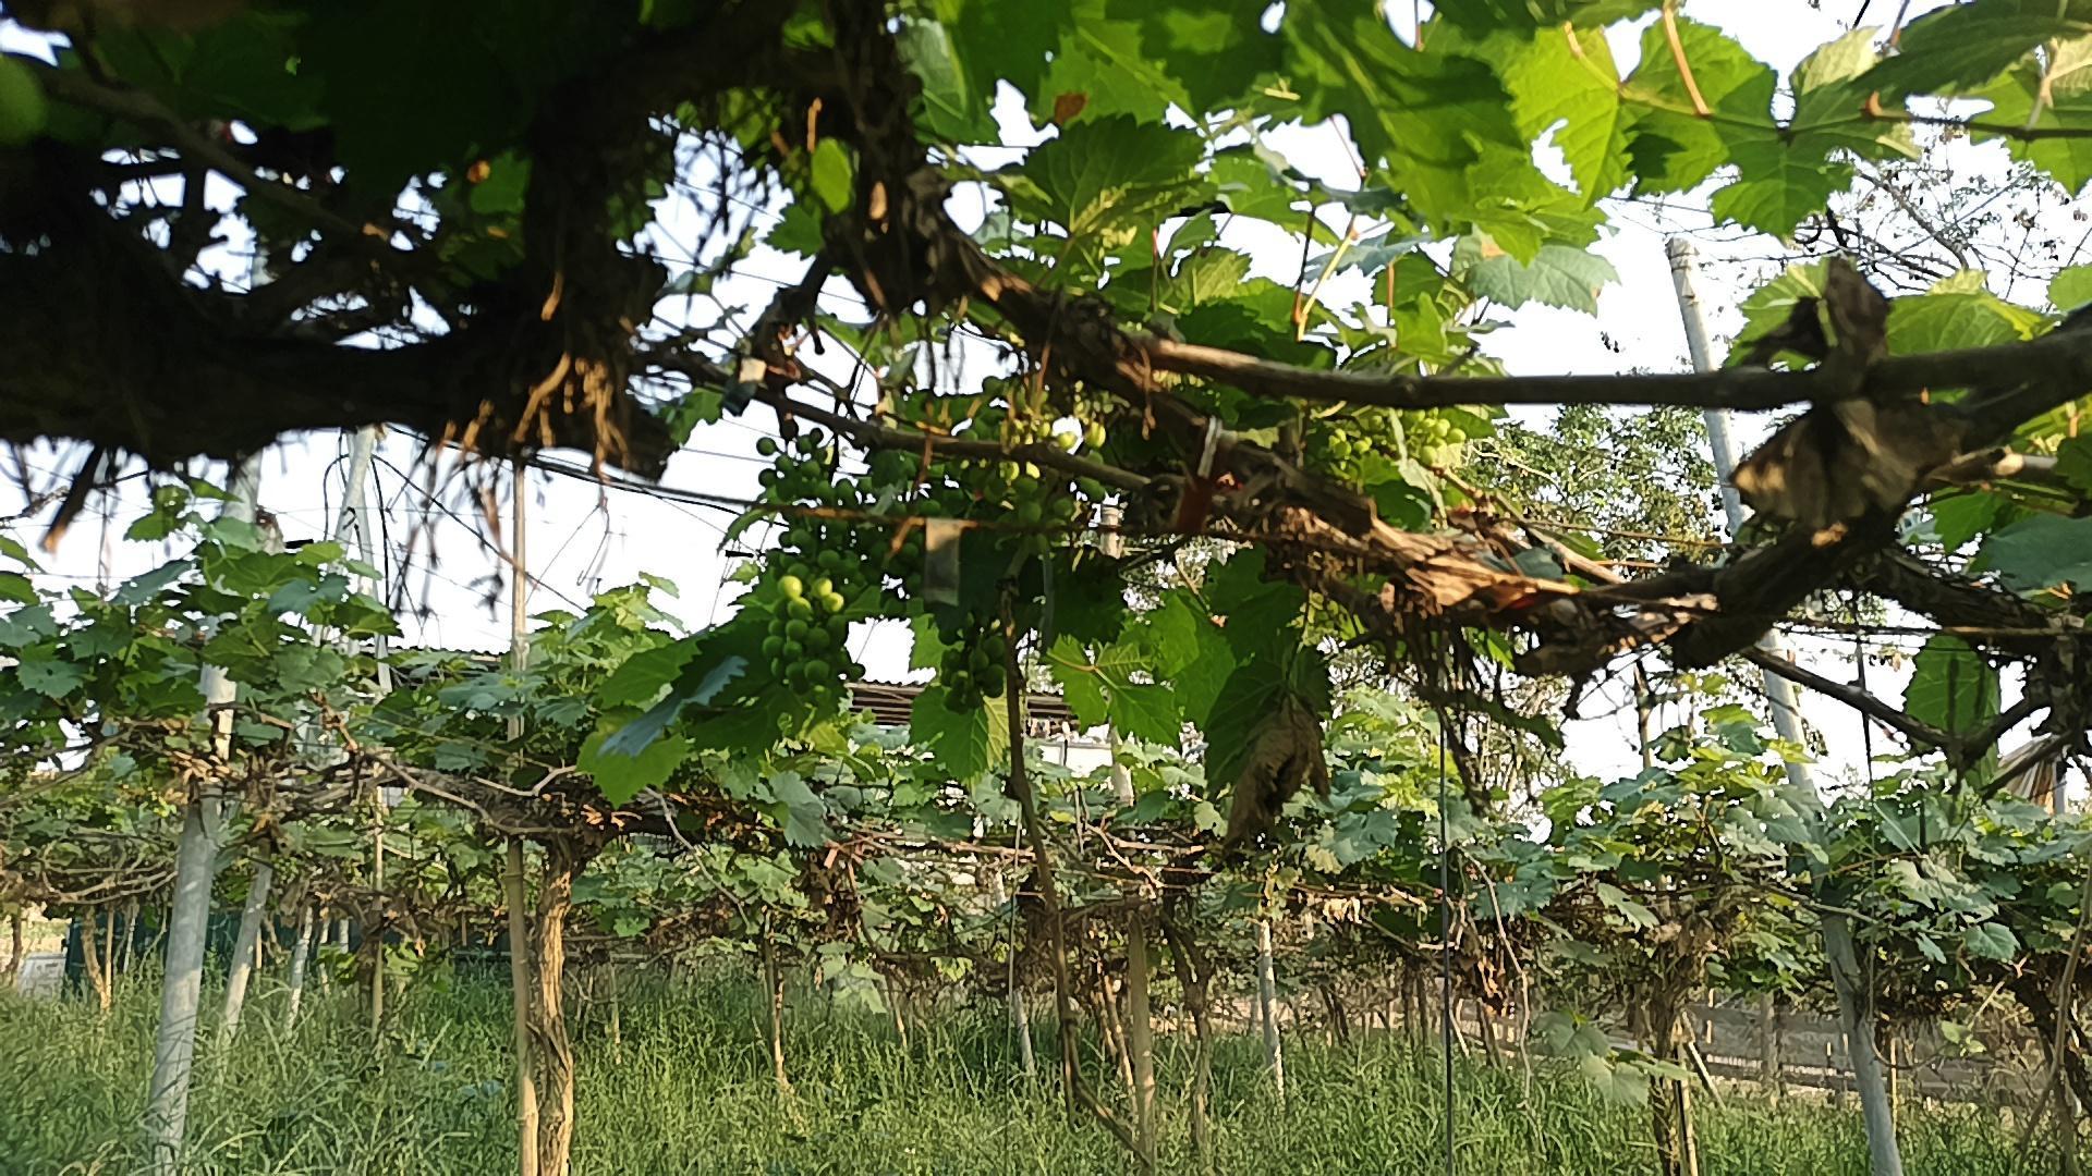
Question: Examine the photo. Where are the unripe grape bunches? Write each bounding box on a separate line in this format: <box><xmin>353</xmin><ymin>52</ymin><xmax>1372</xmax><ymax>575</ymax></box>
<box><xmin>758</xmin><ymin>430</ymin><xmax>938</xmax><ymax>695</ymax></box>
<box><xmin>1325</xmin><ymin>411</ymin><xmax>1468</xmax><ymax>471</ymax></box>
<box><xmin>949</xmin><ymin>372</ymin><xmax>1105</xmax><ymax>551</ymax></box>
<box><xmin>937</xmin><ymin>607</ymin><xmax>1008</xmax><ymax>713</ymax></box>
